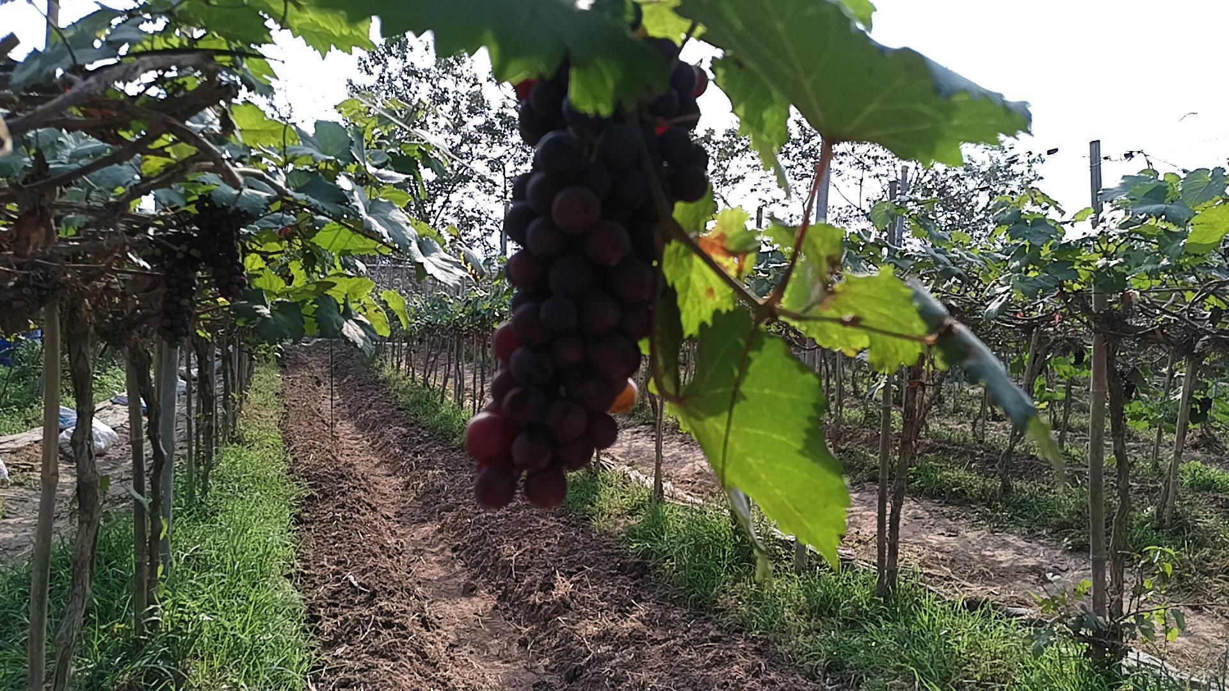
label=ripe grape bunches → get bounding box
[467,58,709,508]
[193,193,253,298]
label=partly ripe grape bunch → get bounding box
[143,237,203,347]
